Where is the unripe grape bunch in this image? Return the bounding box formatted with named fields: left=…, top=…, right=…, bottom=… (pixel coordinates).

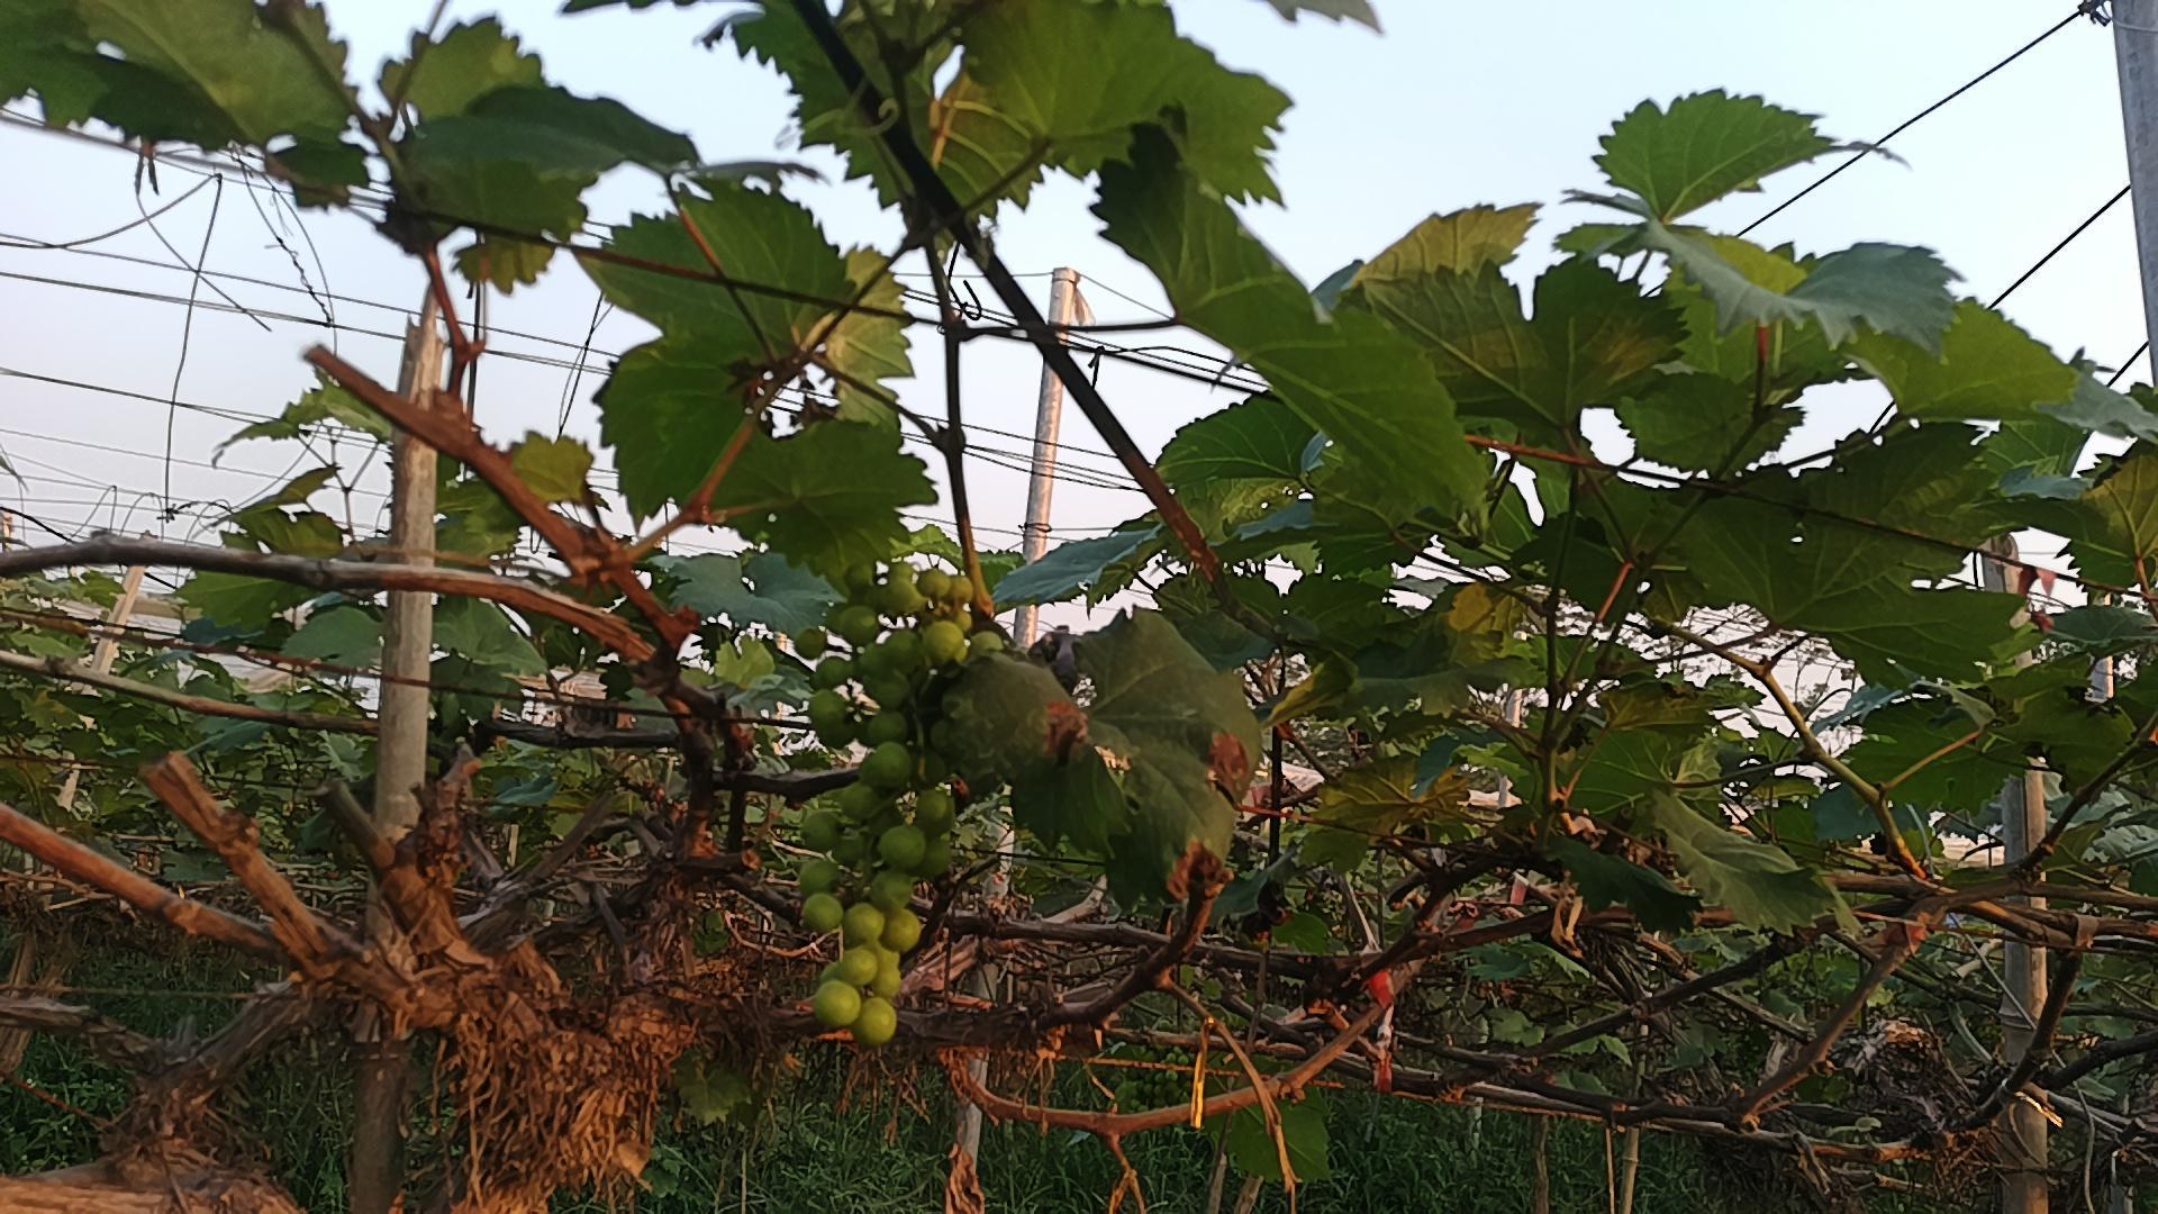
left=798, top=562, right=1007, bottom=1045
